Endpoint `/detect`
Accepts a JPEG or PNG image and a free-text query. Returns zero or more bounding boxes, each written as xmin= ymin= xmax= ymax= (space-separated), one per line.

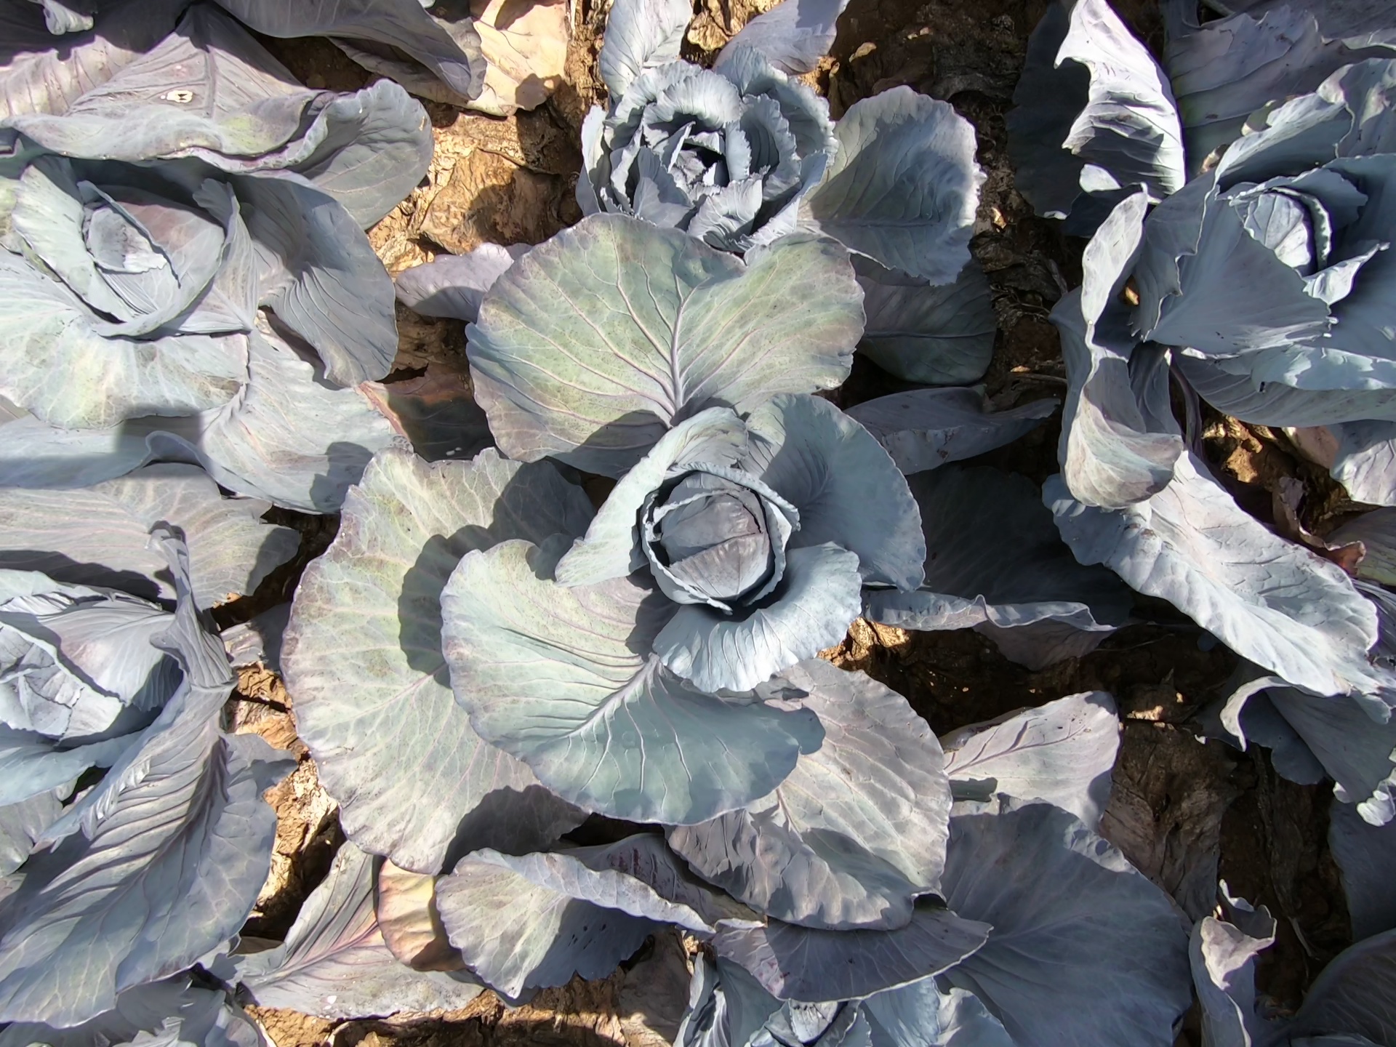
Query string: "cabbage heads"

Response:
xmin=1190 ymin=181 xmax=1325 ymax=307
xmin=649 ymin=139 xmax=738 ymax=226
xmin=660 ymin=468 xmax=789 ymax=598
xmin=753 ymin=908 xmax=867 ymax=1043
xmin=84 ymin=190 xmax=233 ymax=325
xmin=18 ymin=611 xmax=196 ymax=750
